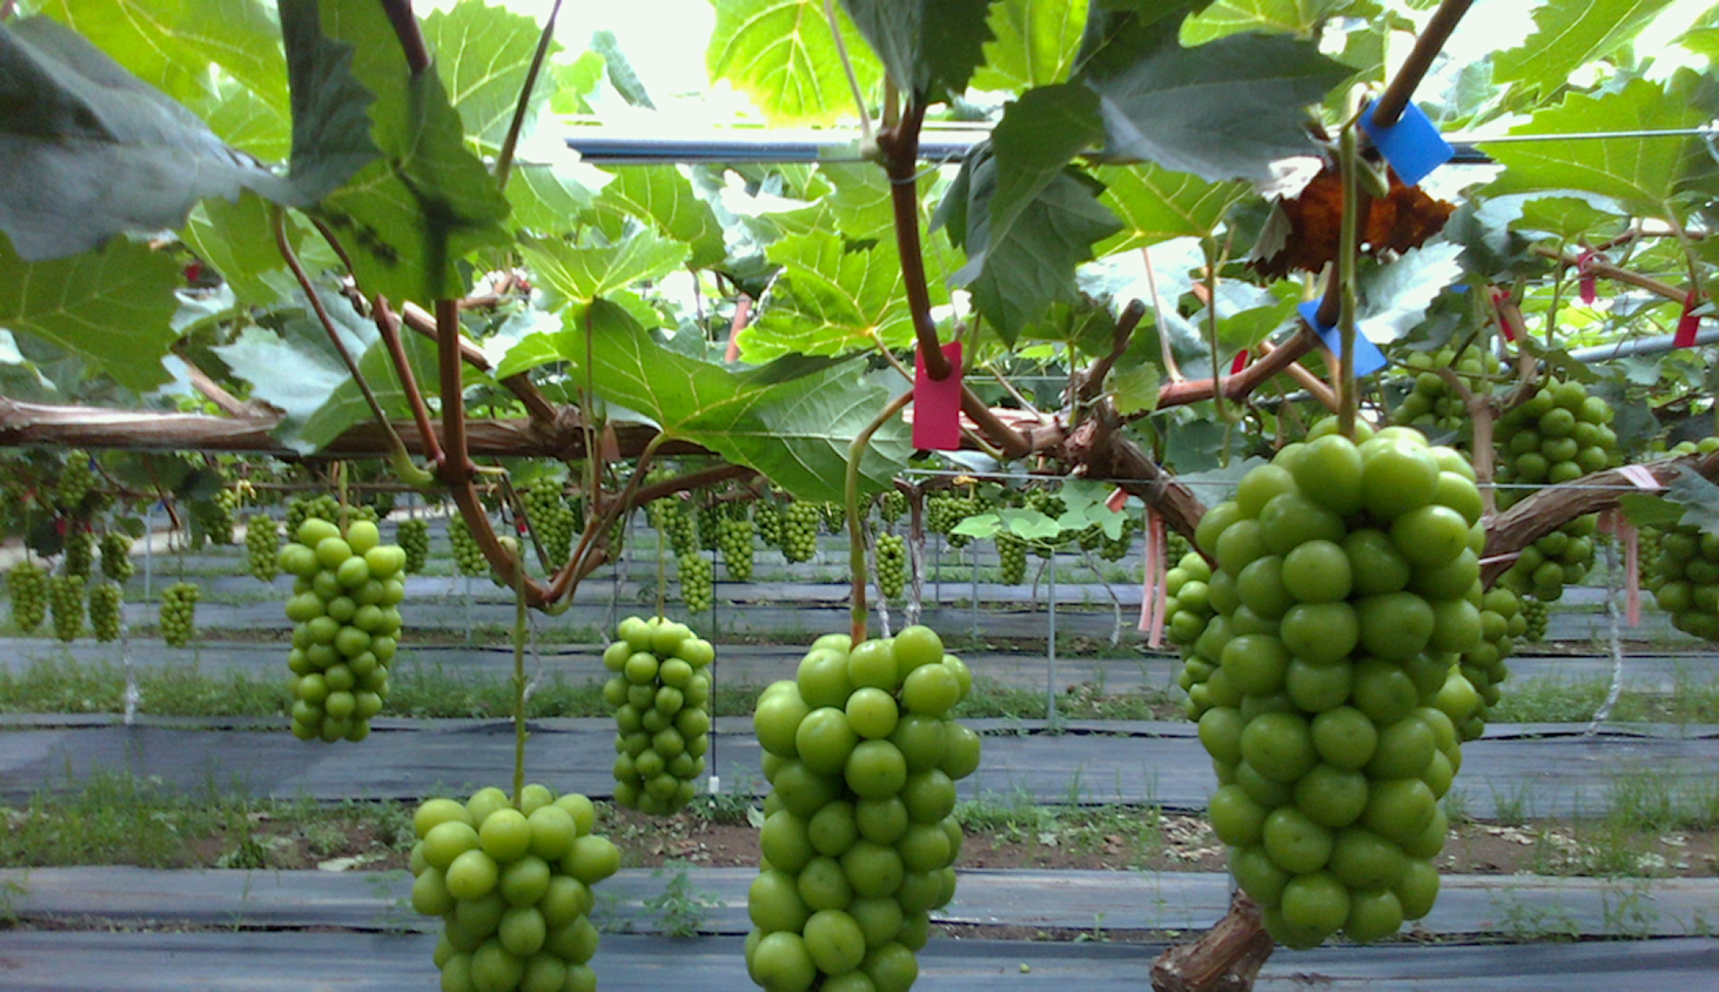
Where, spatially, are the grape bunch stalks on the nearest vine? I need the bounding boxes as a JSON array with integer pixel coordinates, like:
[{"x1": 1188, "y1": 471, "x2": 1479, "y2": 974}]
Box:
[
  {"x1": 1339, "y1": 128, "x2": 1357, "y2": 441},
  {"x1": 844, "y1": 391, "x2": 913, "y2": 652},
  {"x1": 497, "y1": 537, "x2": 525, "y2": 812}
]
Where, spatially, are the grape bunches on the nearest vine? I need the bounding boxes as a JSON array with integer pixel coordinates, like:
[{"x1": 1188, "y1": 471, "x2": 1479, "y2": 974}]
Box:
[
  {"x1": 408, "y1": 783, "x2": 620, "y2": 991},
  {"x1": 745, "y1": 626, "x2": 982, "y2": 991},
  {"x1": 1194, "y1": 415, "x2": 1485, "y2": 949}
]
